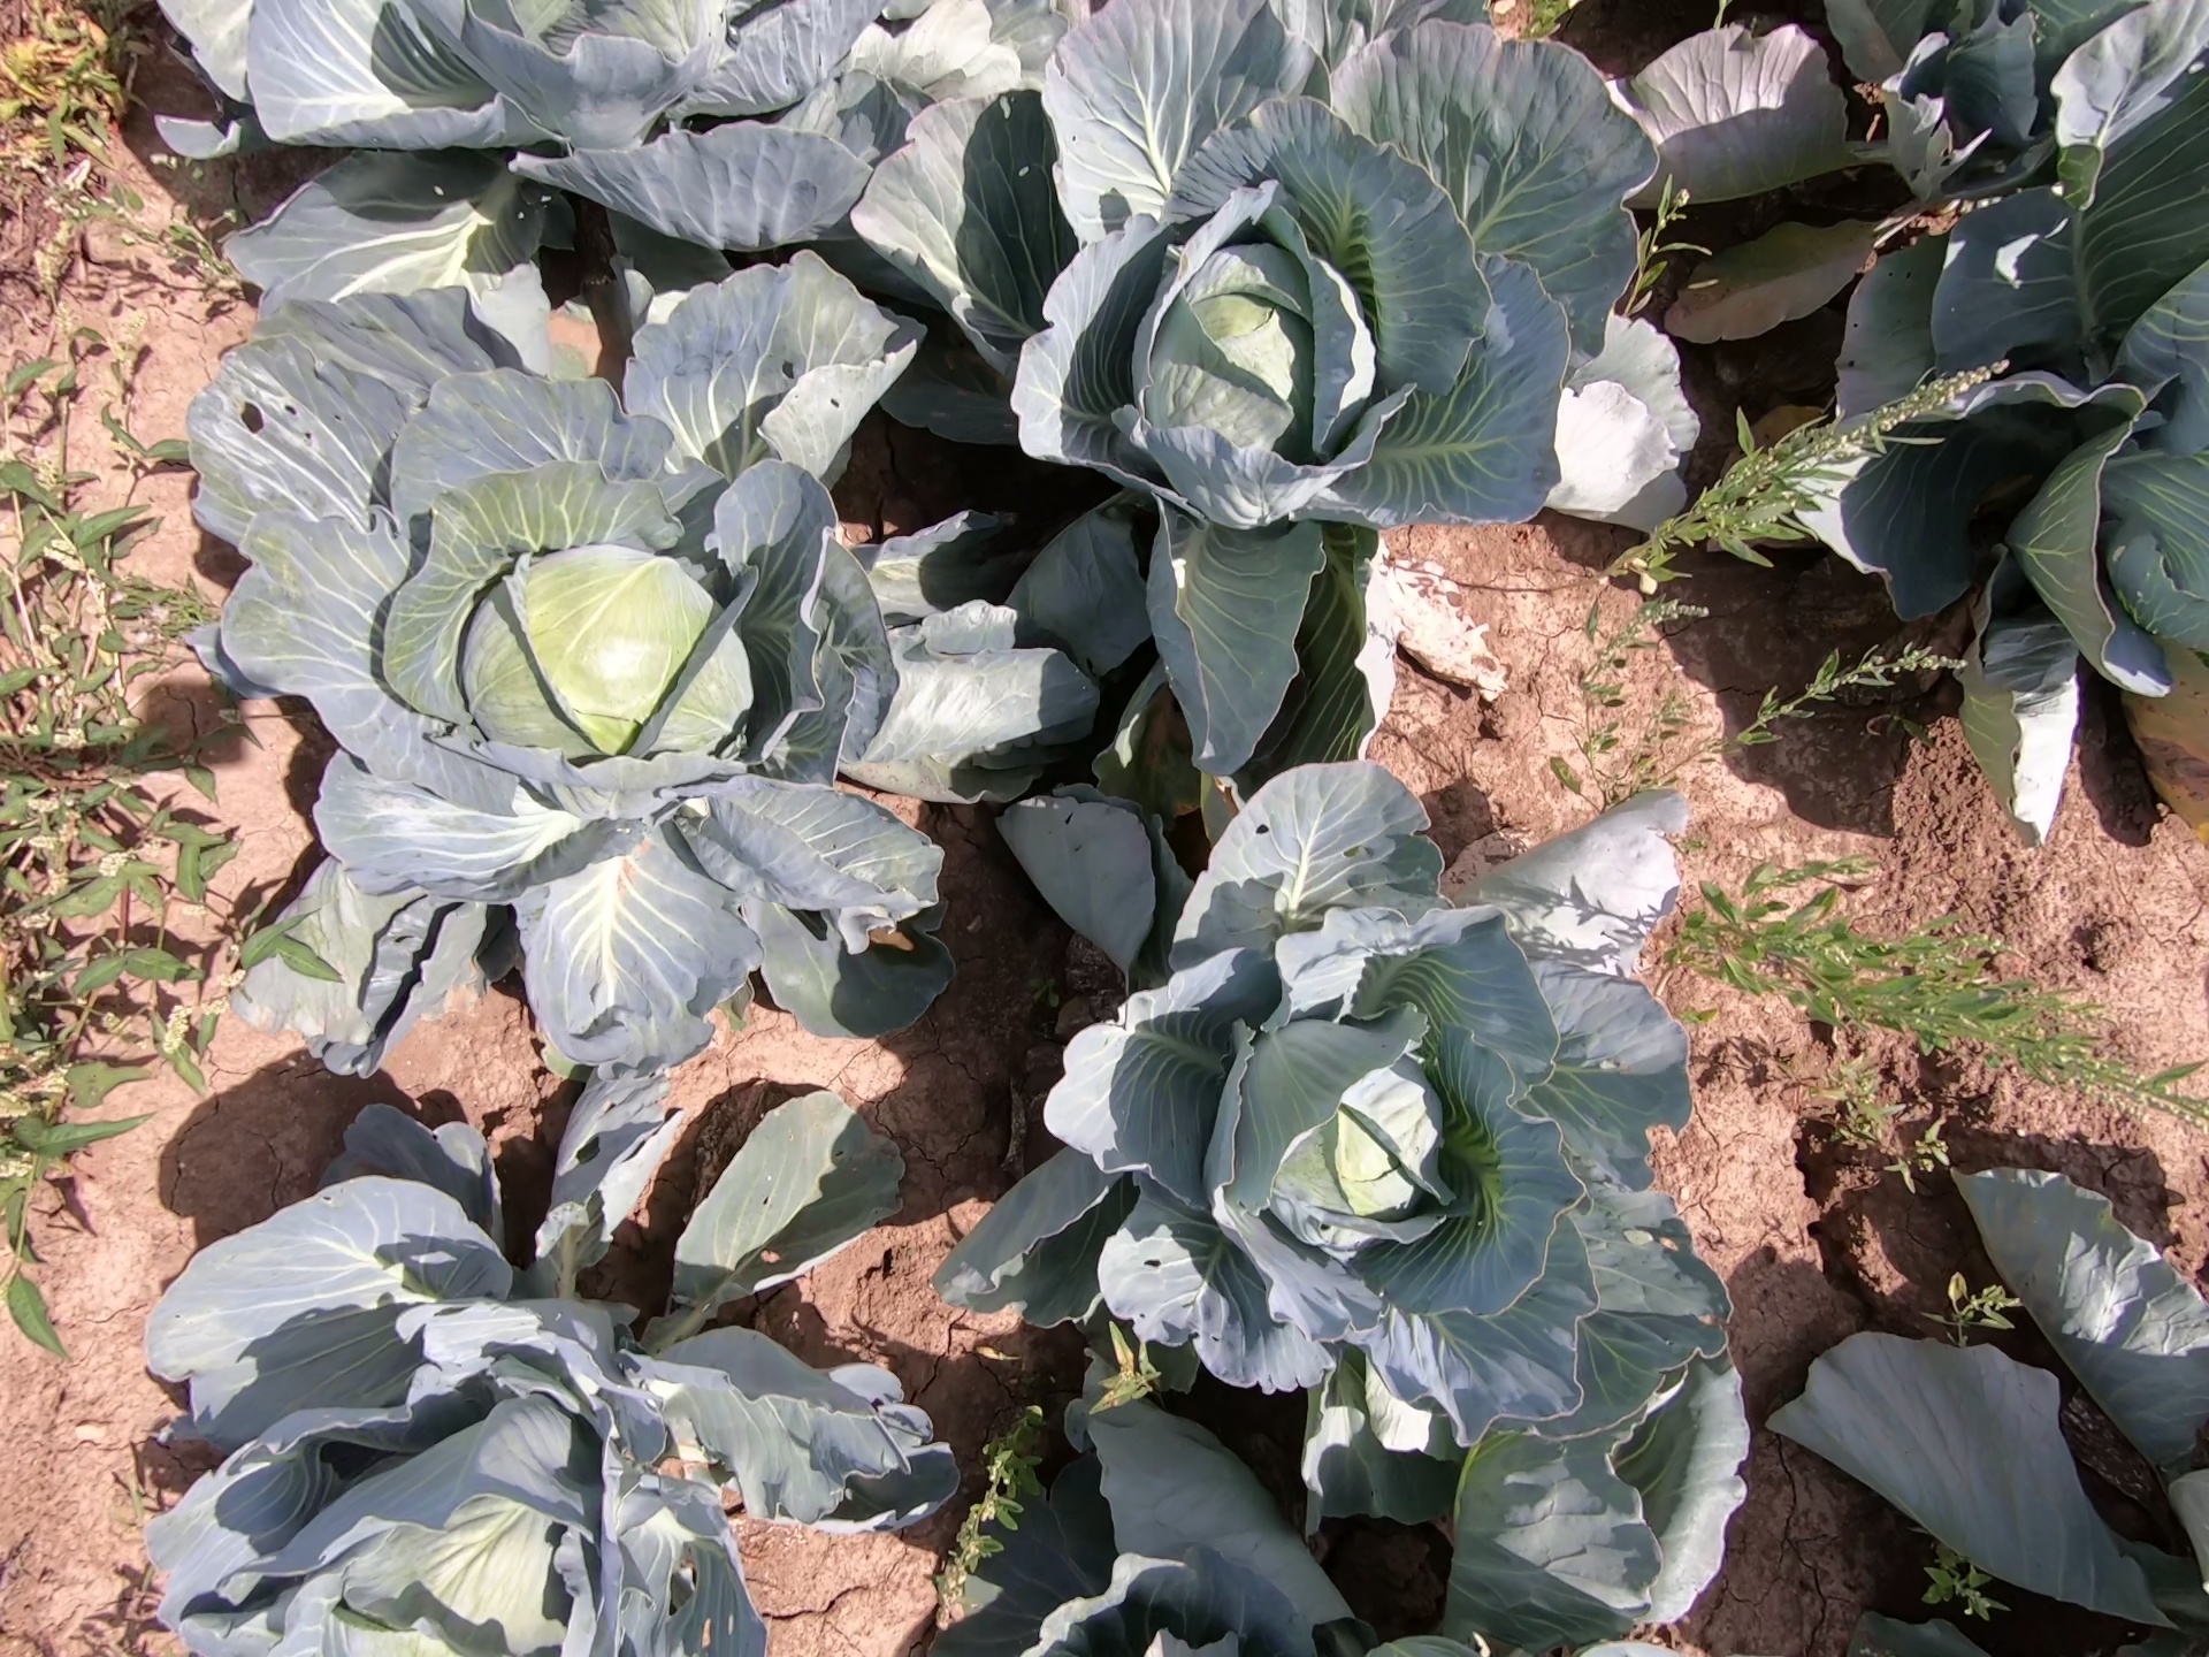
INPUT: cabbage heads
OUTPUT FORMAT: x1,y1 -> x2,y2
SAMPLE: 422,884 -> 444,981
473,0 -> 724,105
458,544 -> 756,785
1248,1028 -> 1446,1251
319,1421 -> 622,1651
1134,244 -> 1379,494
